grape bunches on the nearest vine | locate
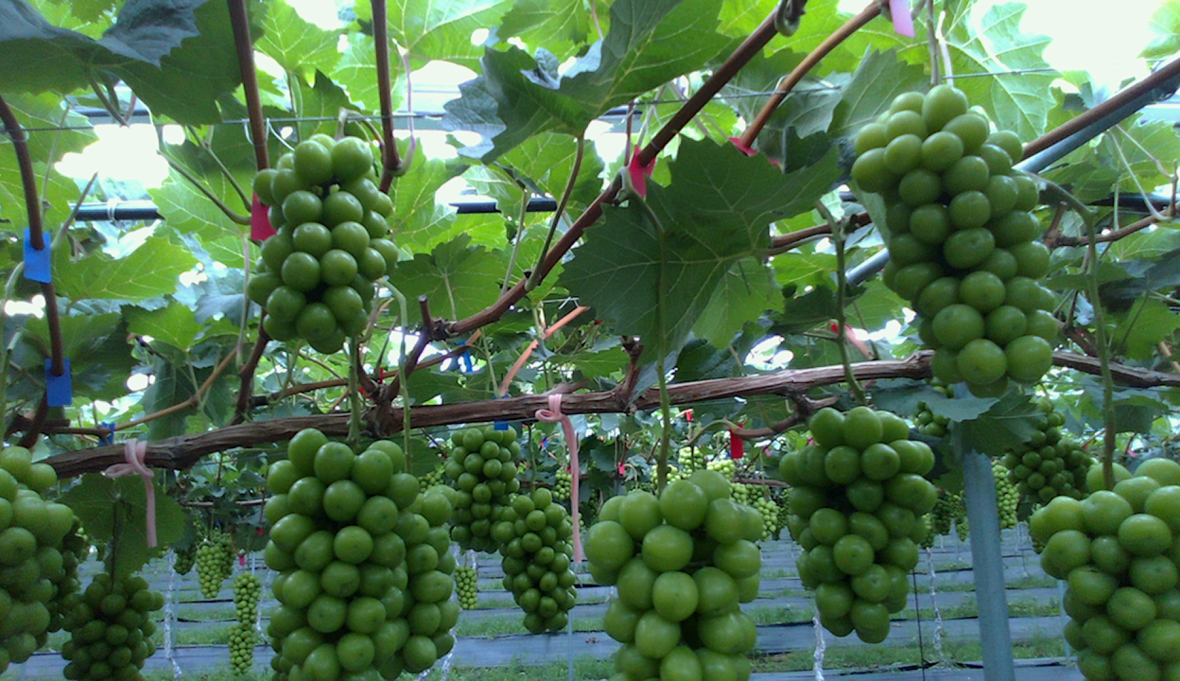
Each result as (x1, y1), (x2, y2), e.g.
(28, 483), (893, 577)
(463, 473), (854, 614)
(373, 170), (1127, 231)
(583, 468), (765, 680)
(263, 428), (460, 680)
(850, 83), (1058, 399)
(247, 134), (399, 357)
(778, 406), (939, 645)
(1030, 458), (1179, 680)
(0, 445), (75, 677)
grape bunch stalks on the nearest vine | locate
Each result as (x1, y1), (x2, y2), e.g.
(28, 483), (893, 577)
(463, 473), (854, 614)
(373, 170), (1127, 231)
(334, 108), (384, 148)
(613, 171), (670, 497)
(344, 339), (360, 456)
(927, 0), (940, 87)
(815, 200), (868, 406)
(1043, 180), (1119, 491)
